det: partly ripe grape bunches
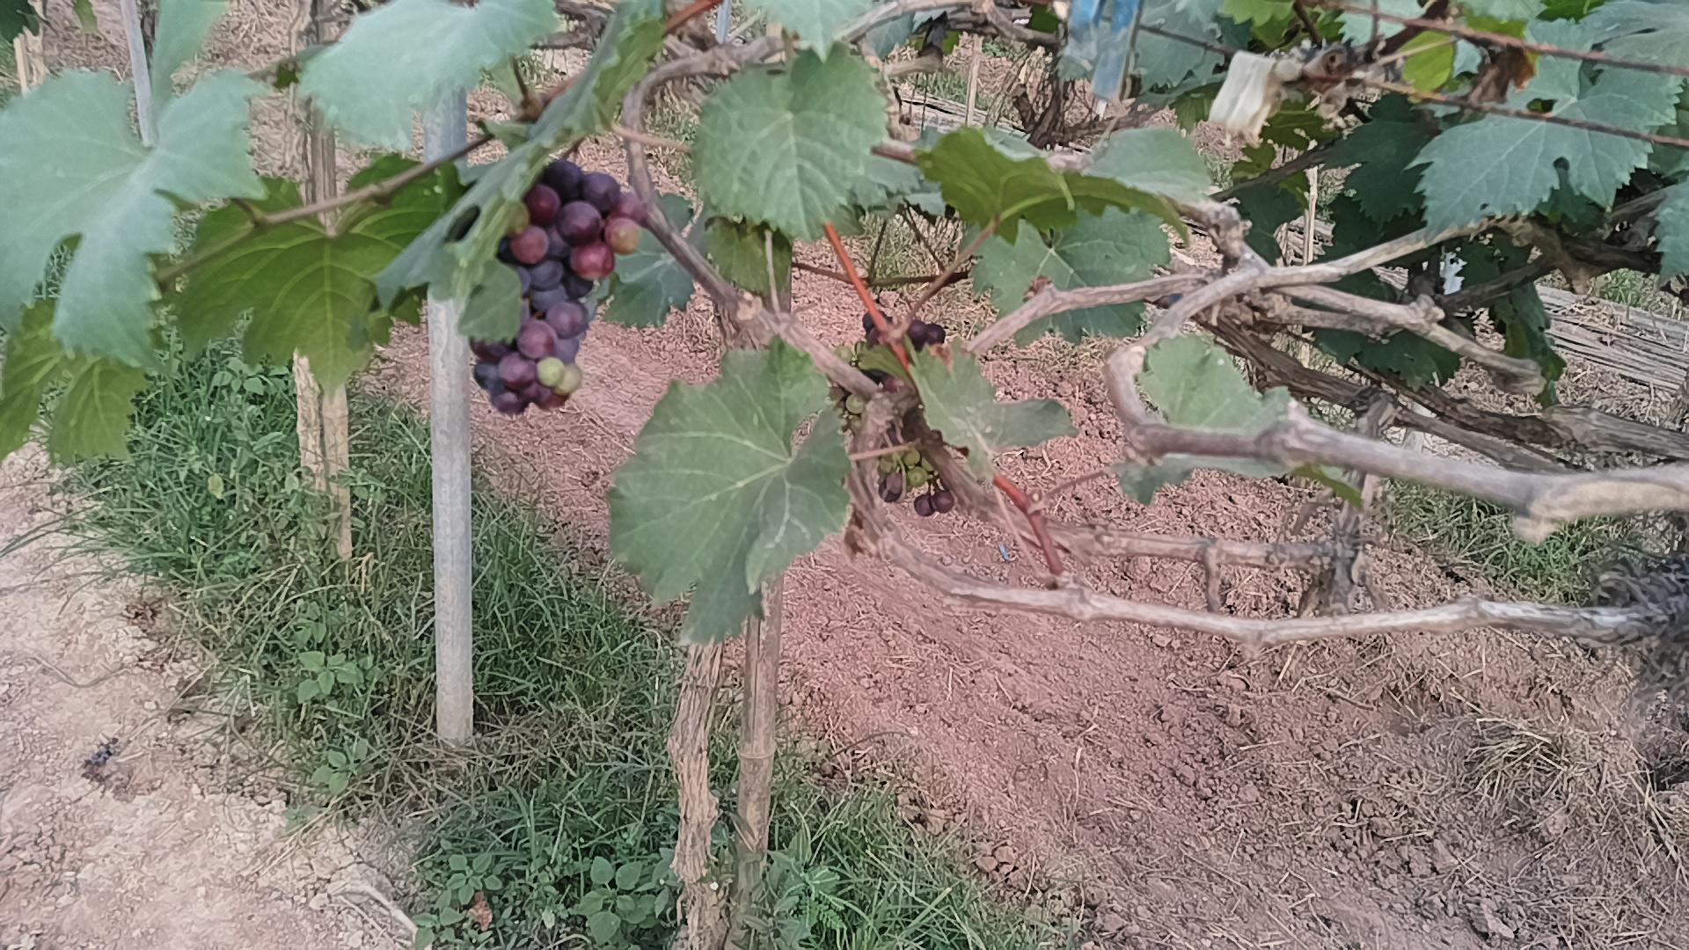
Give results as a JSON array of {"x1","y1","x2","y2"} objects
[
  {"x1": 832, "y1": 307, "x2": 955, "y2": 517},
  {"x1": 467, "y1": 158, "x2": 646, "y2": 417}
]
